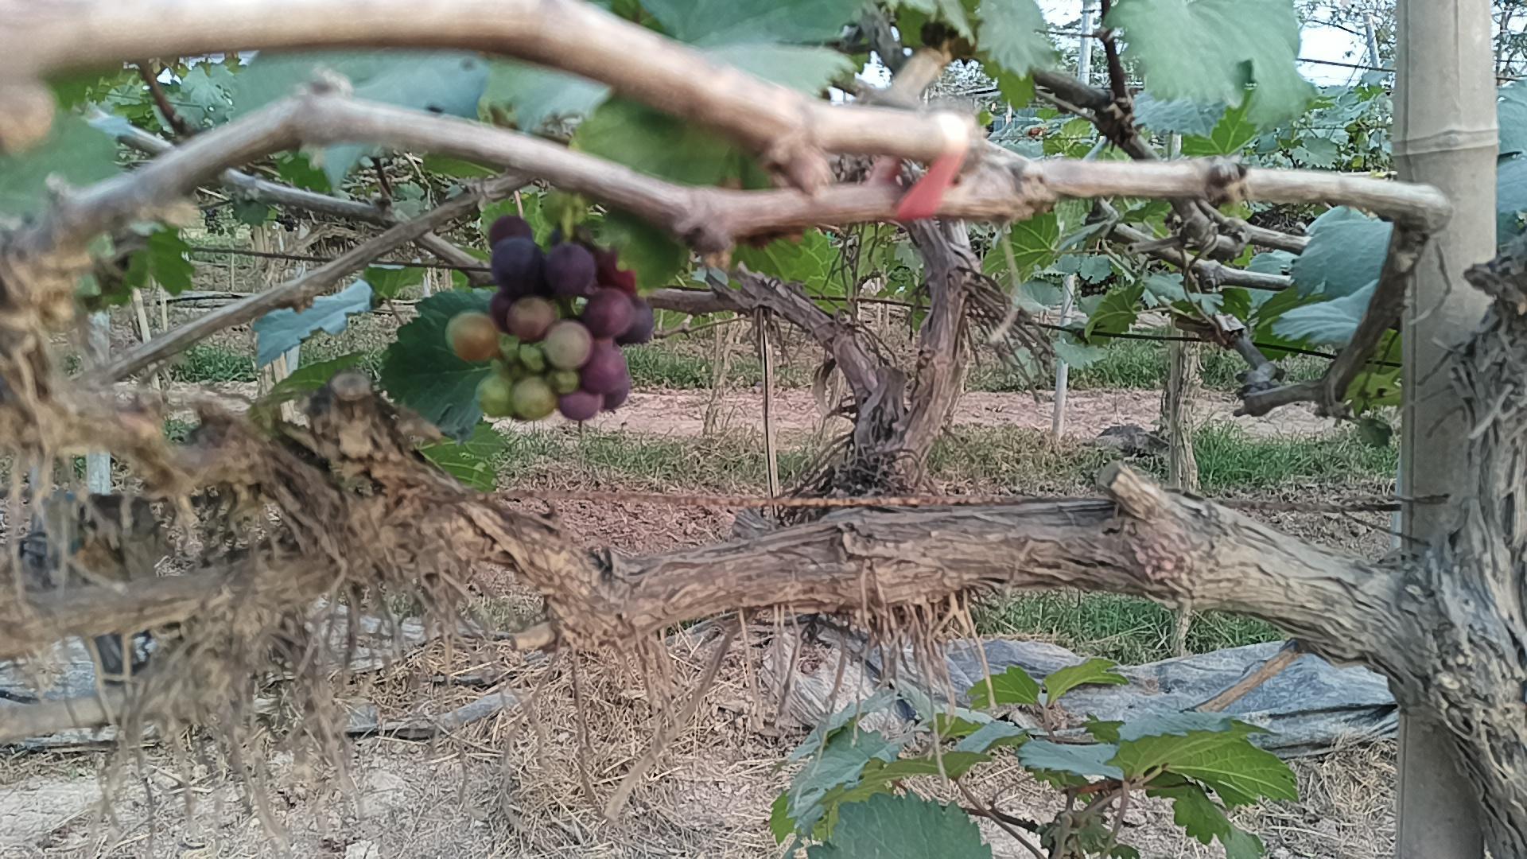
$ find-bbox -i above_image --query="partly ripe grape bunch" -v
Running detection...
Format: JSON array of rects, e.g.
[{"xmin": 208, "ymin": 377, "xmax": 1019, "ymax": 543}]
[{"xmin": 446, "ymin": 216, "xmax": 653, "ymax": 422}]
